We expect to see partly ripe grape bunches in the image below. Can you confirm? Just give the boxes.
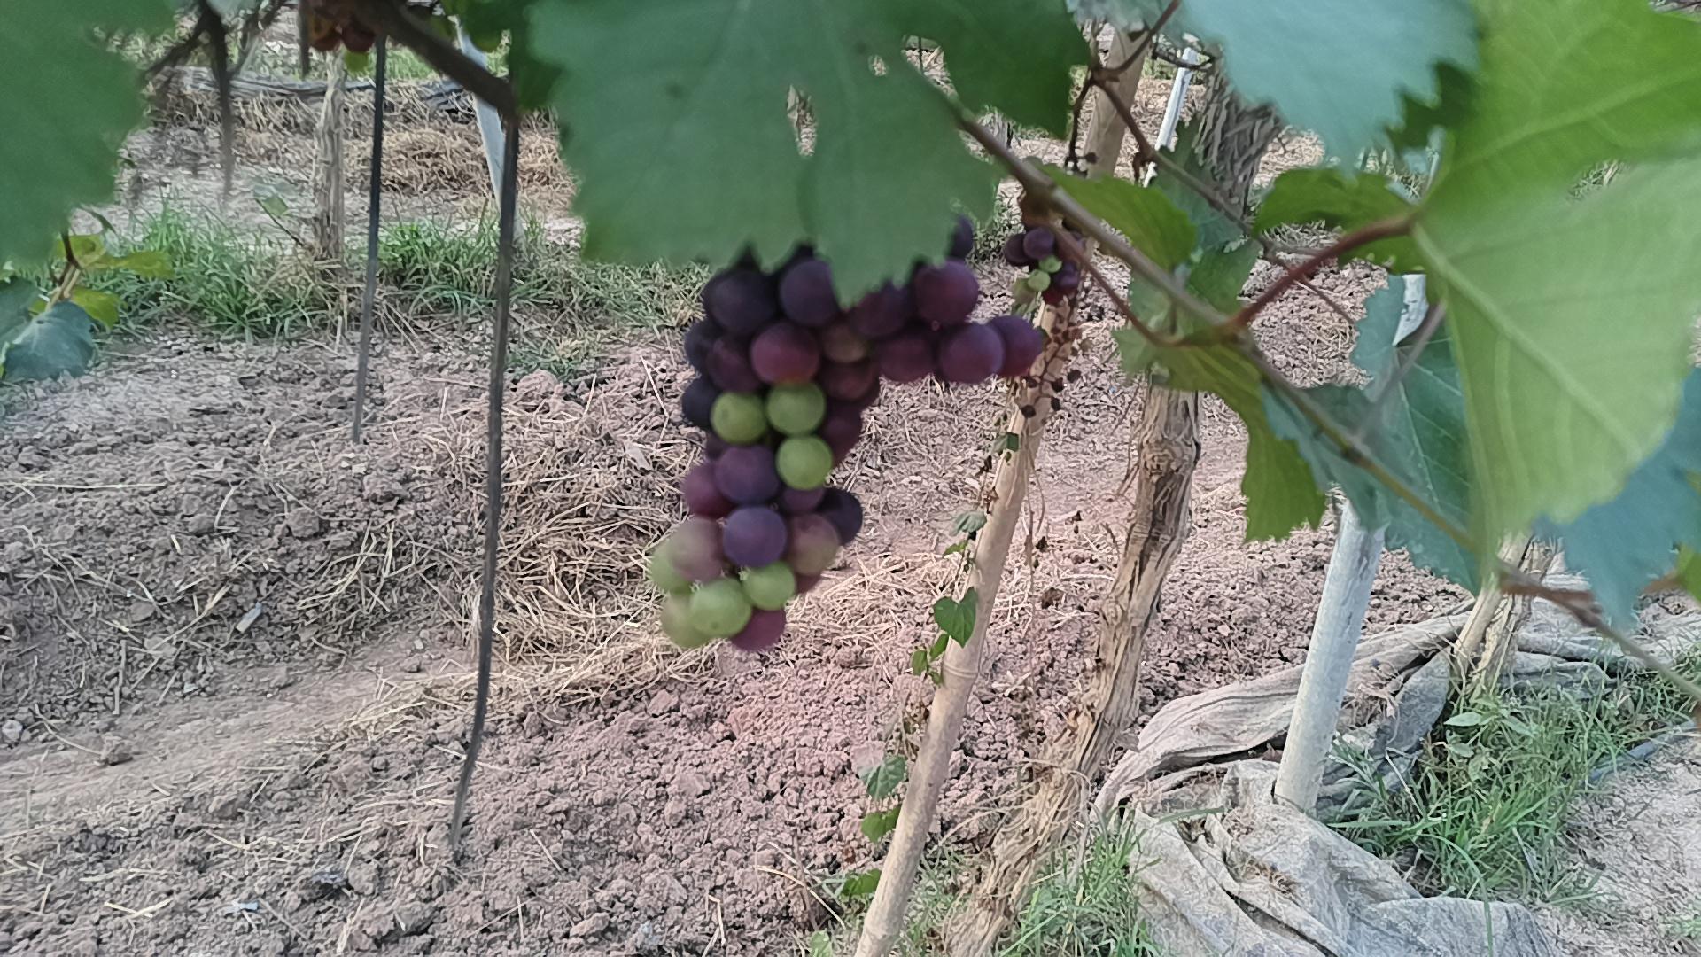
[648,218,1045,651]
[1001,226,1081,313]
